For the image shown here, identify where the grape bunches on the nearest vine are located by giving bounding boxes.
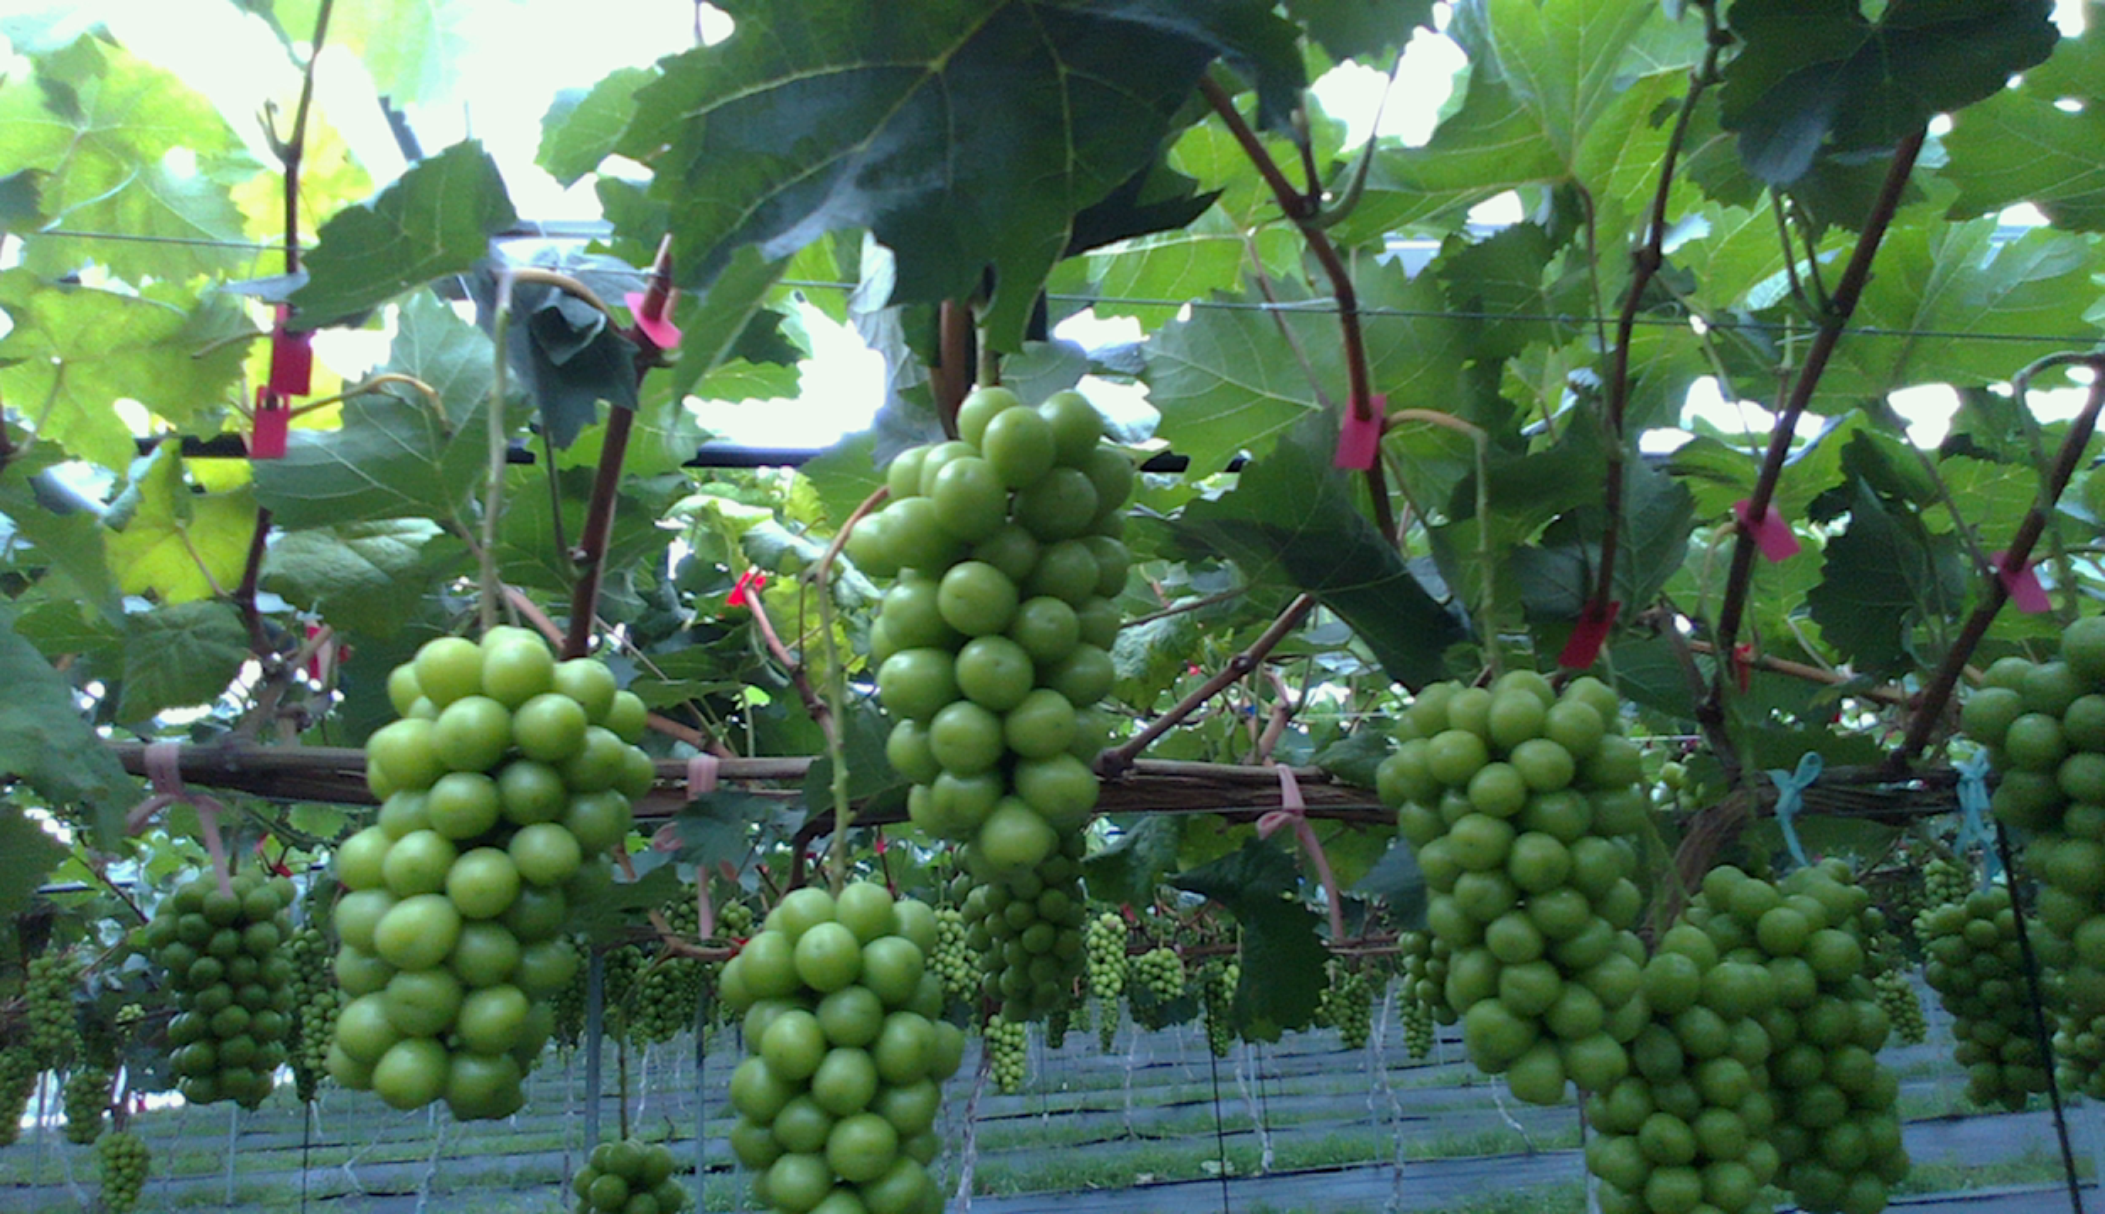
[326,624,656,1125]
[1673,857,1913,1212]
[717,882,965,1212]
[845,386,1135,885]
[1960,617,2103,1015]
[1584,926,1779,1212]
[1376,669,1653,1108]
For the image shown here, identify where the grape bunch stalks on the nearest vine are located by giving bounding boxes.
[2011,347,2102,622]
[1692,519,1776,885]
[1645,833,1665,951]
[973,271,999,388]
[479,266,606,641]
[1383,408,1506,685]
[816,484,891,895]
